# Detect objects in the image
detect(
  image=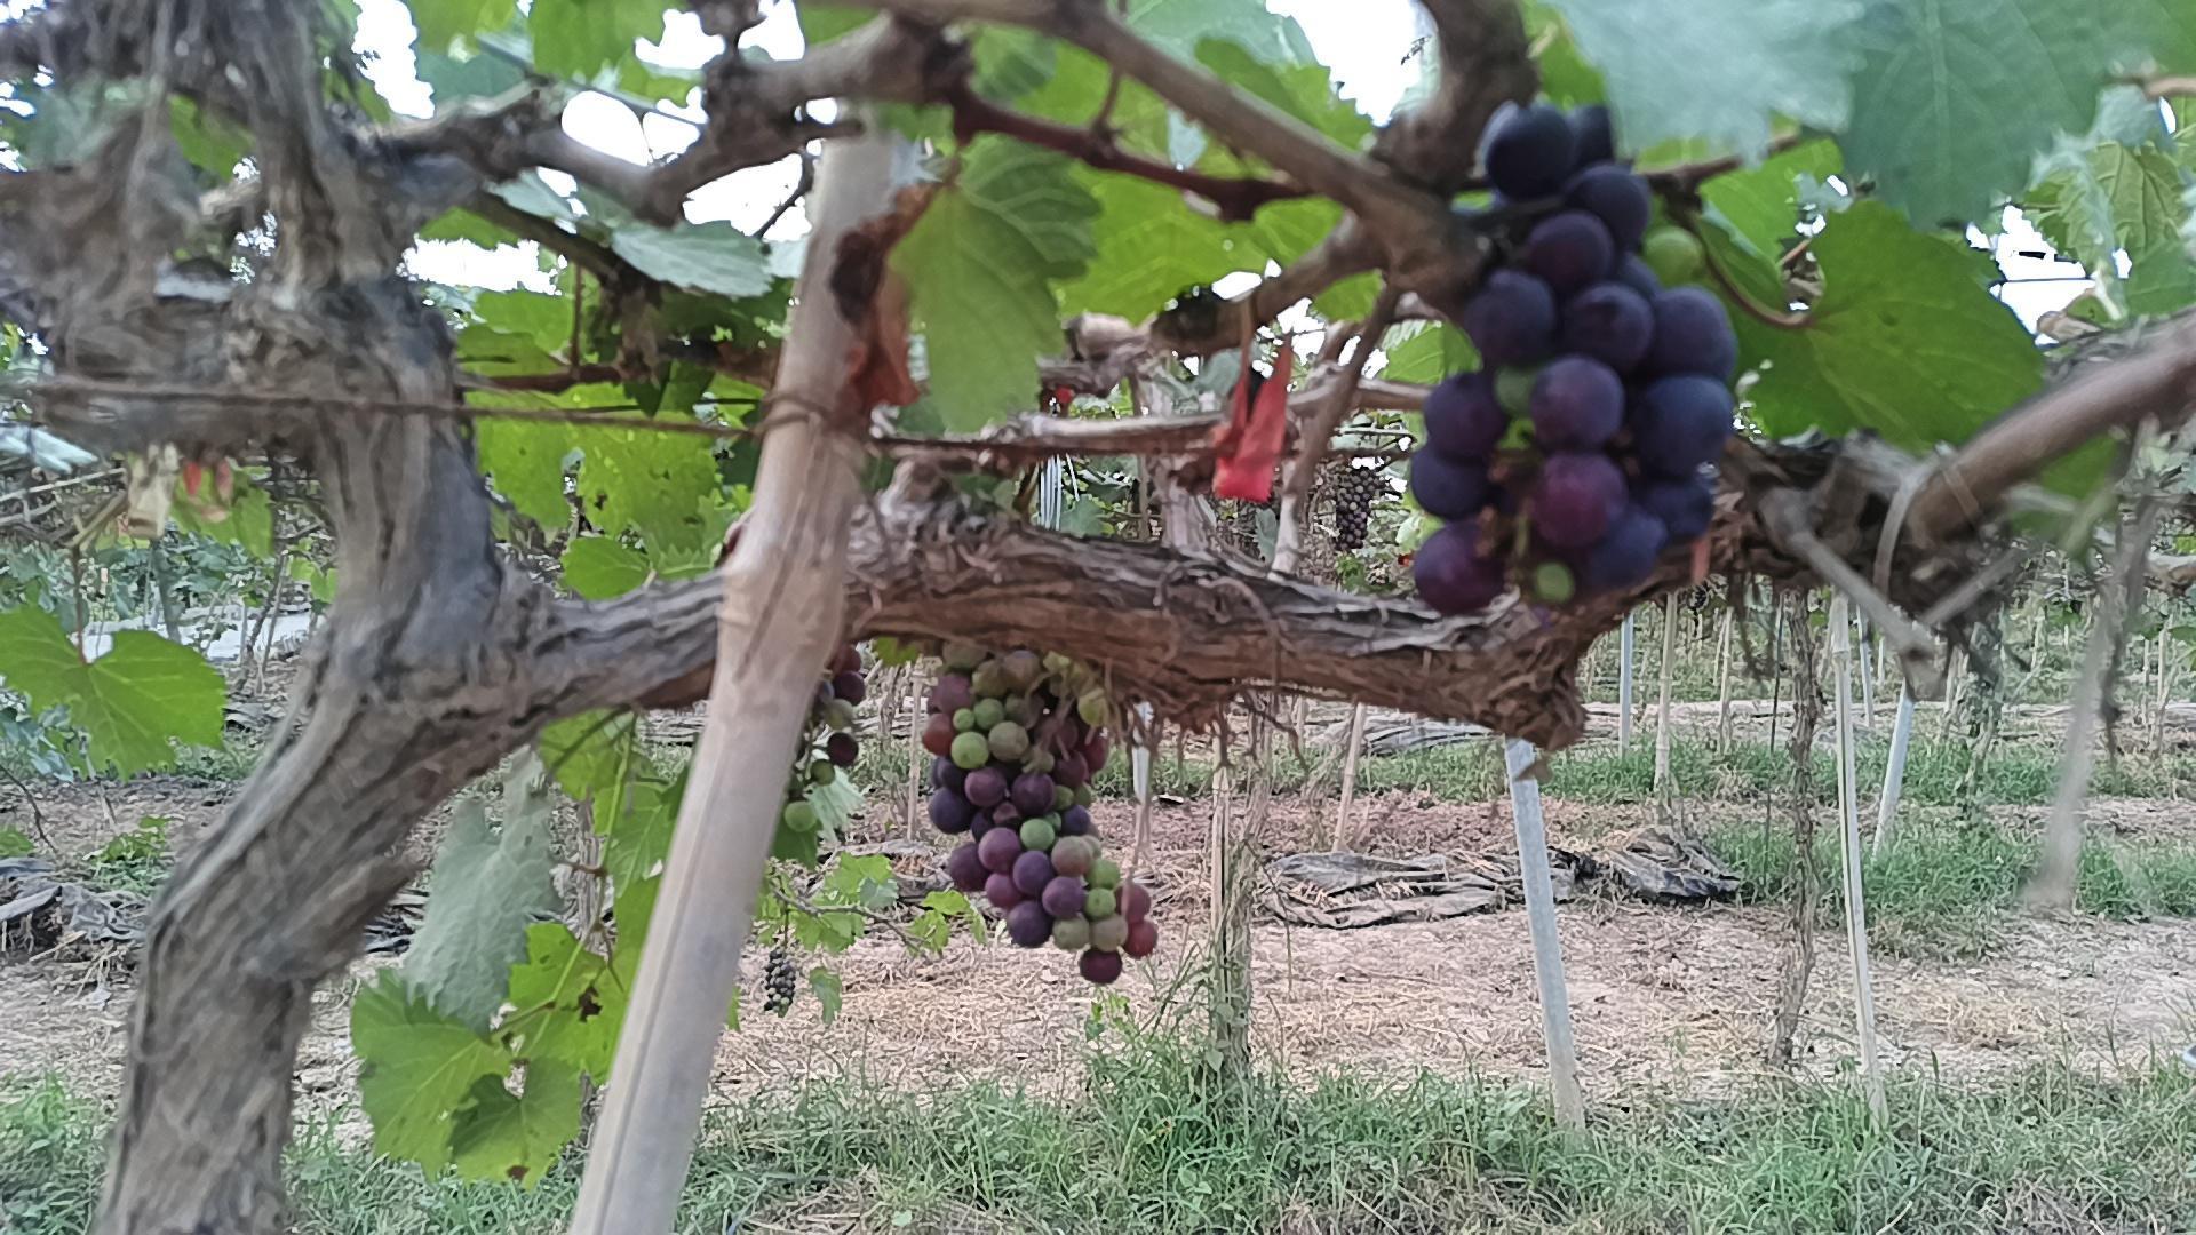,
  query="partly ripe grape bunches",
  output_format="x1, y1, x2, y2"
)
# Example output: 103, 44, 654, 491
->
1409, 104, 1736, 613
773, 644, 866, 865
922, 647, 1157, 985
